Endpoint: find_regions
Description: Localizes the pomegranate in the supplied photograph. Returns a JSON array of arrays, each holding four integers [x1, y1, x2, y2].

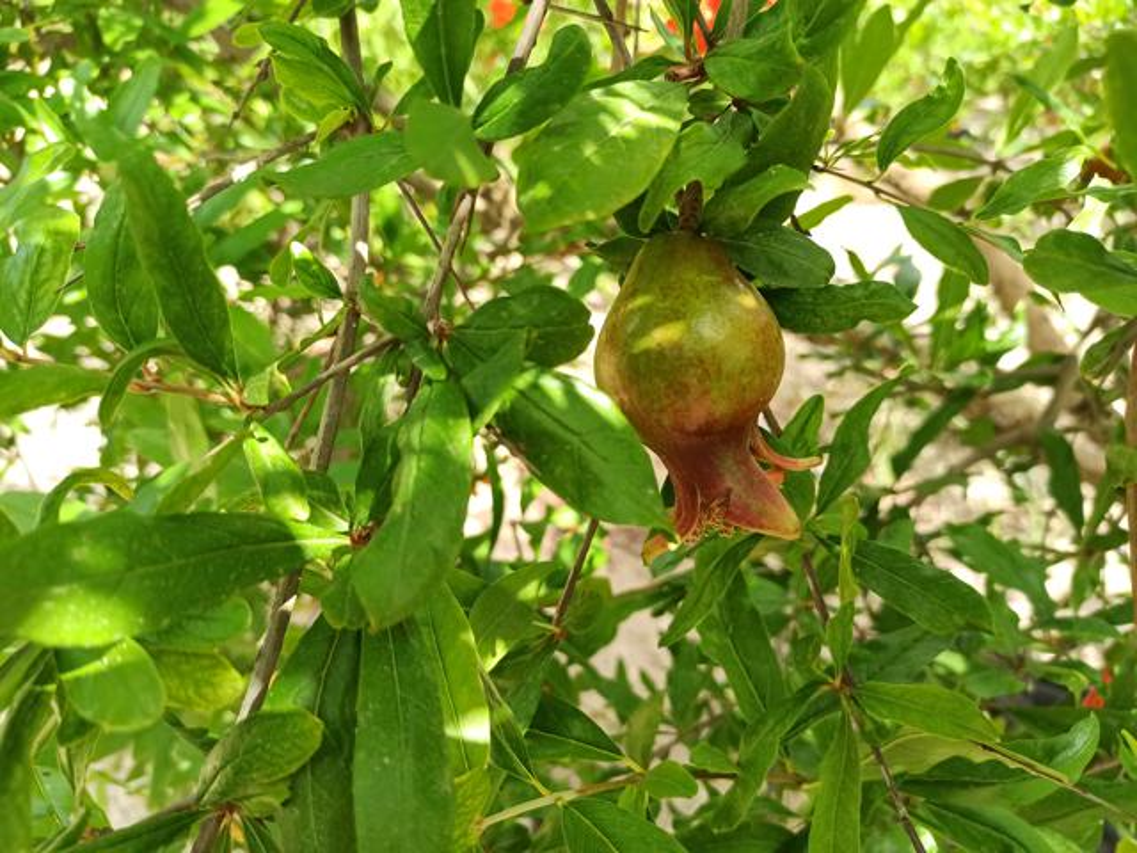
[[593, 231, 821, 540]]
